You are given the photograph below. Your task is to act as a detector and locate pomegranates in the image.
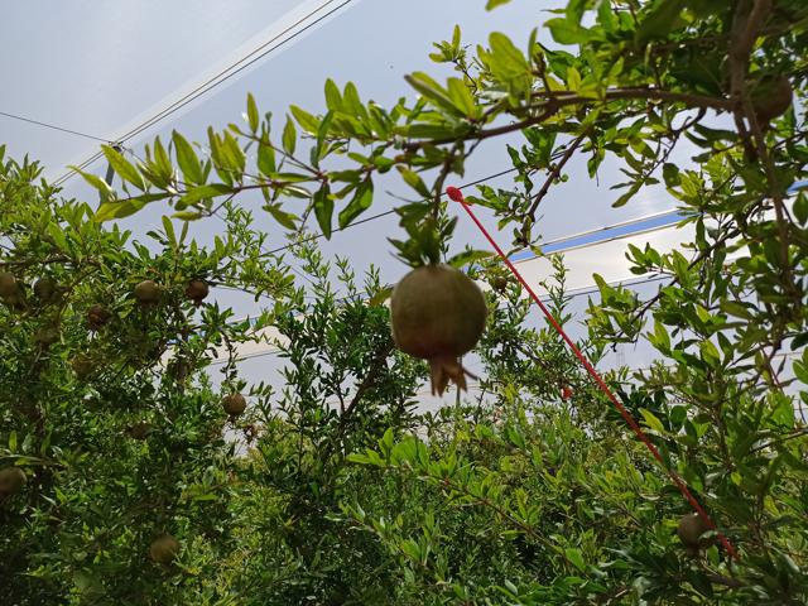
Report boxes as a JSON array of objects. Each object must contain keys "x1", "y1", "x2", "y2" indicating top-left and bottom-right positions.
[
  {"x1": 87, "y1": 307, "x2": 111, "y2": 332},
  {"x1": 34, "y1": 280, "x2": 54, "y2": 299},
  {"x1": 223, "y1": 393, "x2": 246, "y2": 425},
  {"x1": 150, "y1": 535, "x2": 179, "y2": 562},
  {"x1": 71, "y1": 356, "x2": 96, "y2": 375},
  {"x1": 37, "y1": 328, "x2": 56, "y2": 343},
  {"x1": 0, "y1": 273, "x2": 19, "y2": 295},
  {"x1": 124, "y1": 422, "x2": 149, "y2": 439},
  {"x1": 390, "y1": 263, "x2": 487, "y2": 396},
  {"x1": 752, "y1": 77, "x2": 793, "y2": 133},
  {"x1": 186, "y1": 280, "x2": 208, "y2": 308},
  {"x1": 0, "y1": 467, "x2": 28, "y2": 495},
  {"x1": 495, "y1": 275, "x2": 508, "y2": 294},
  {"x1": 134, "y1": 279, "x2": 162, "y2": 303},
  {"x1": 678, "y1": 513, "x2": 710, "y2": 562}
]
